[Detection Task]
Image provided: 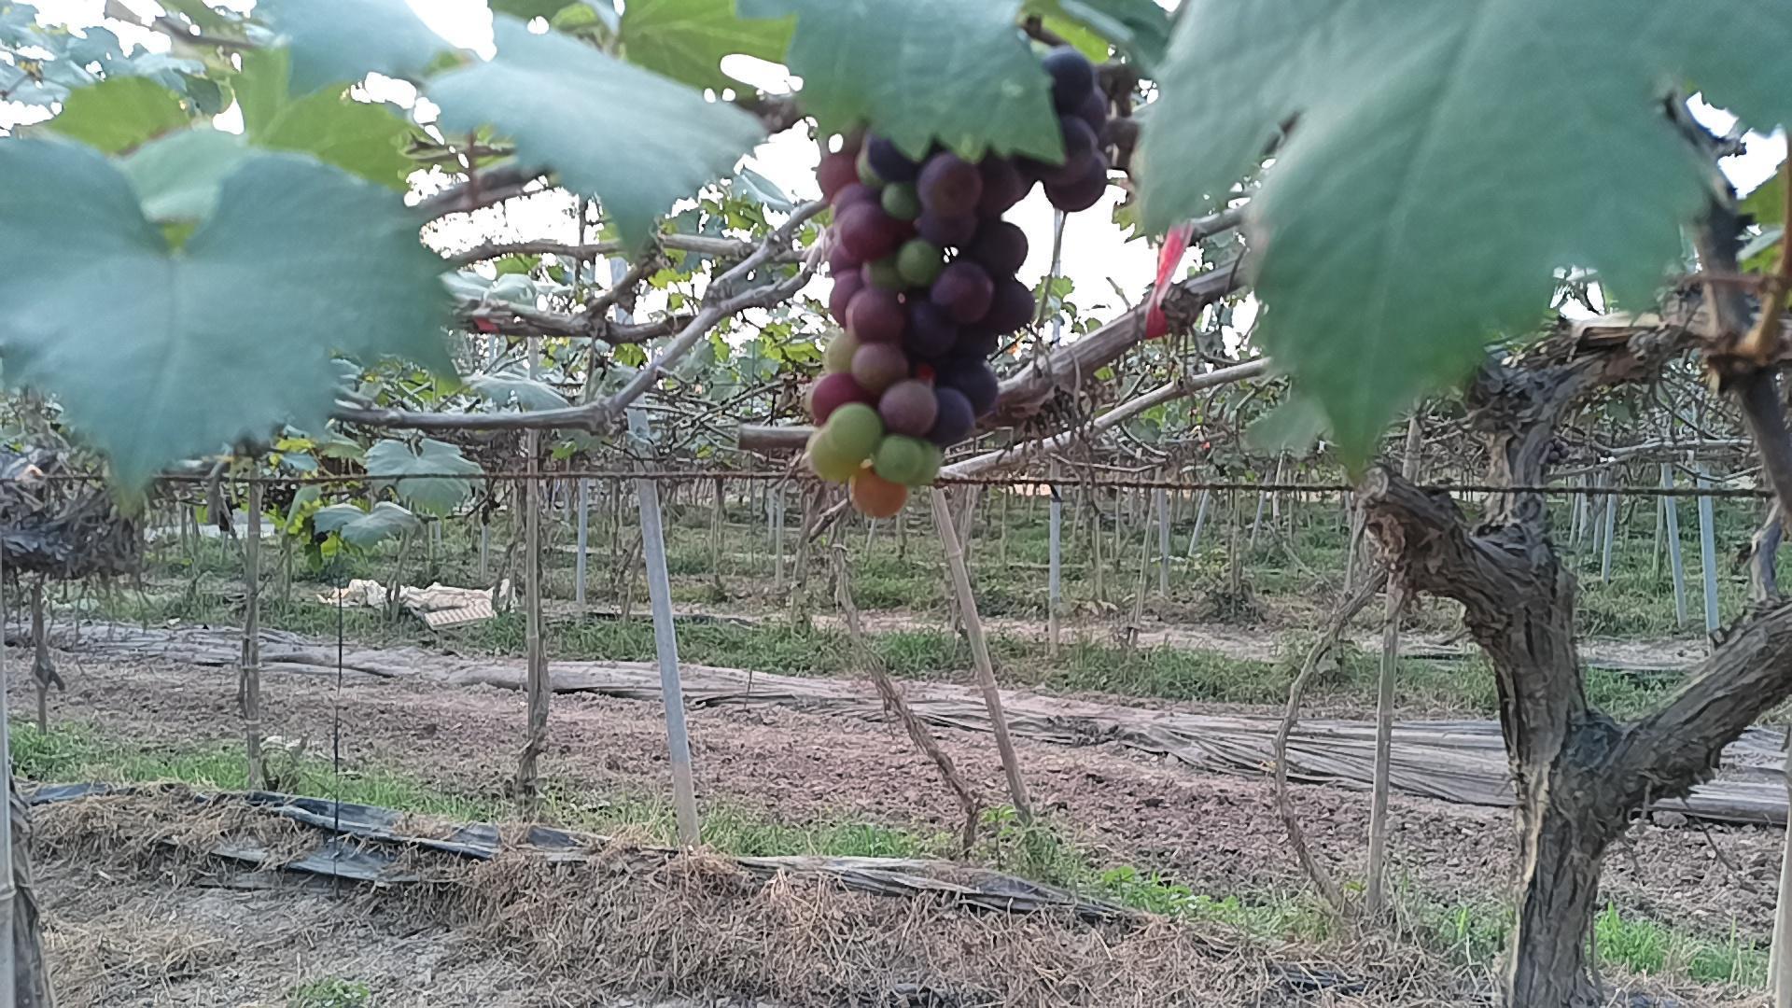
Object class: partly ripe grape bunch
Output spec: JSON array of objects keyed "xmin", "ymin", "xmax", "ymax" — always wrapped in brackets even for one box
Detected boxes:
[{"xmin": 807, "ymin": 41, "xmax": 1109, "ymax": 516}]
